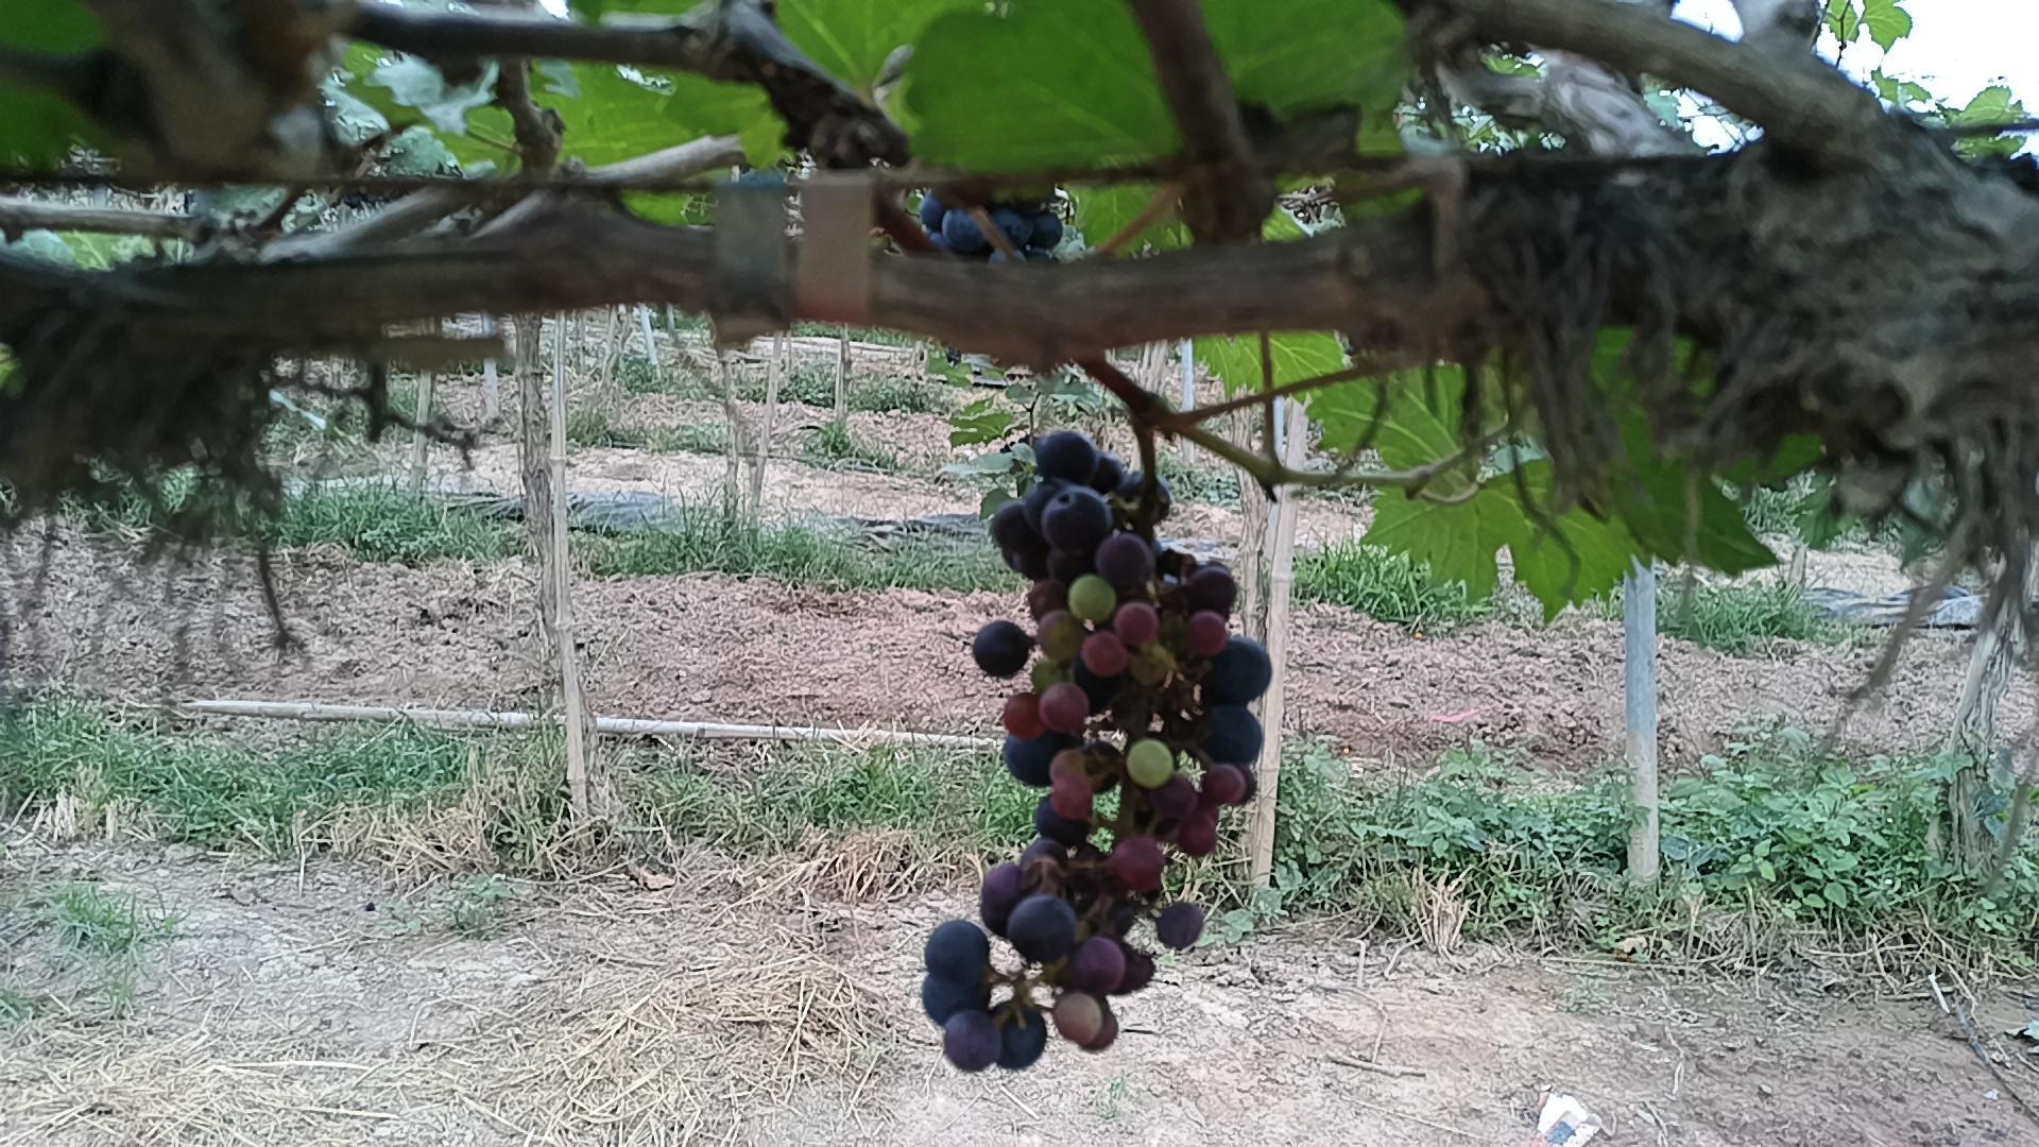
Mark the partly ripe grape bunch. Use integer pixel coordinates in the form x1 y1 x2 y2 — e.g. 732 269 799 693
922 431 1270 1071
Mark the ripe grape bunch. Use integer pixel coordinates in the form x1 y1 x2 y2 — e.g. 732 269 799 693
918 190 1084 260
